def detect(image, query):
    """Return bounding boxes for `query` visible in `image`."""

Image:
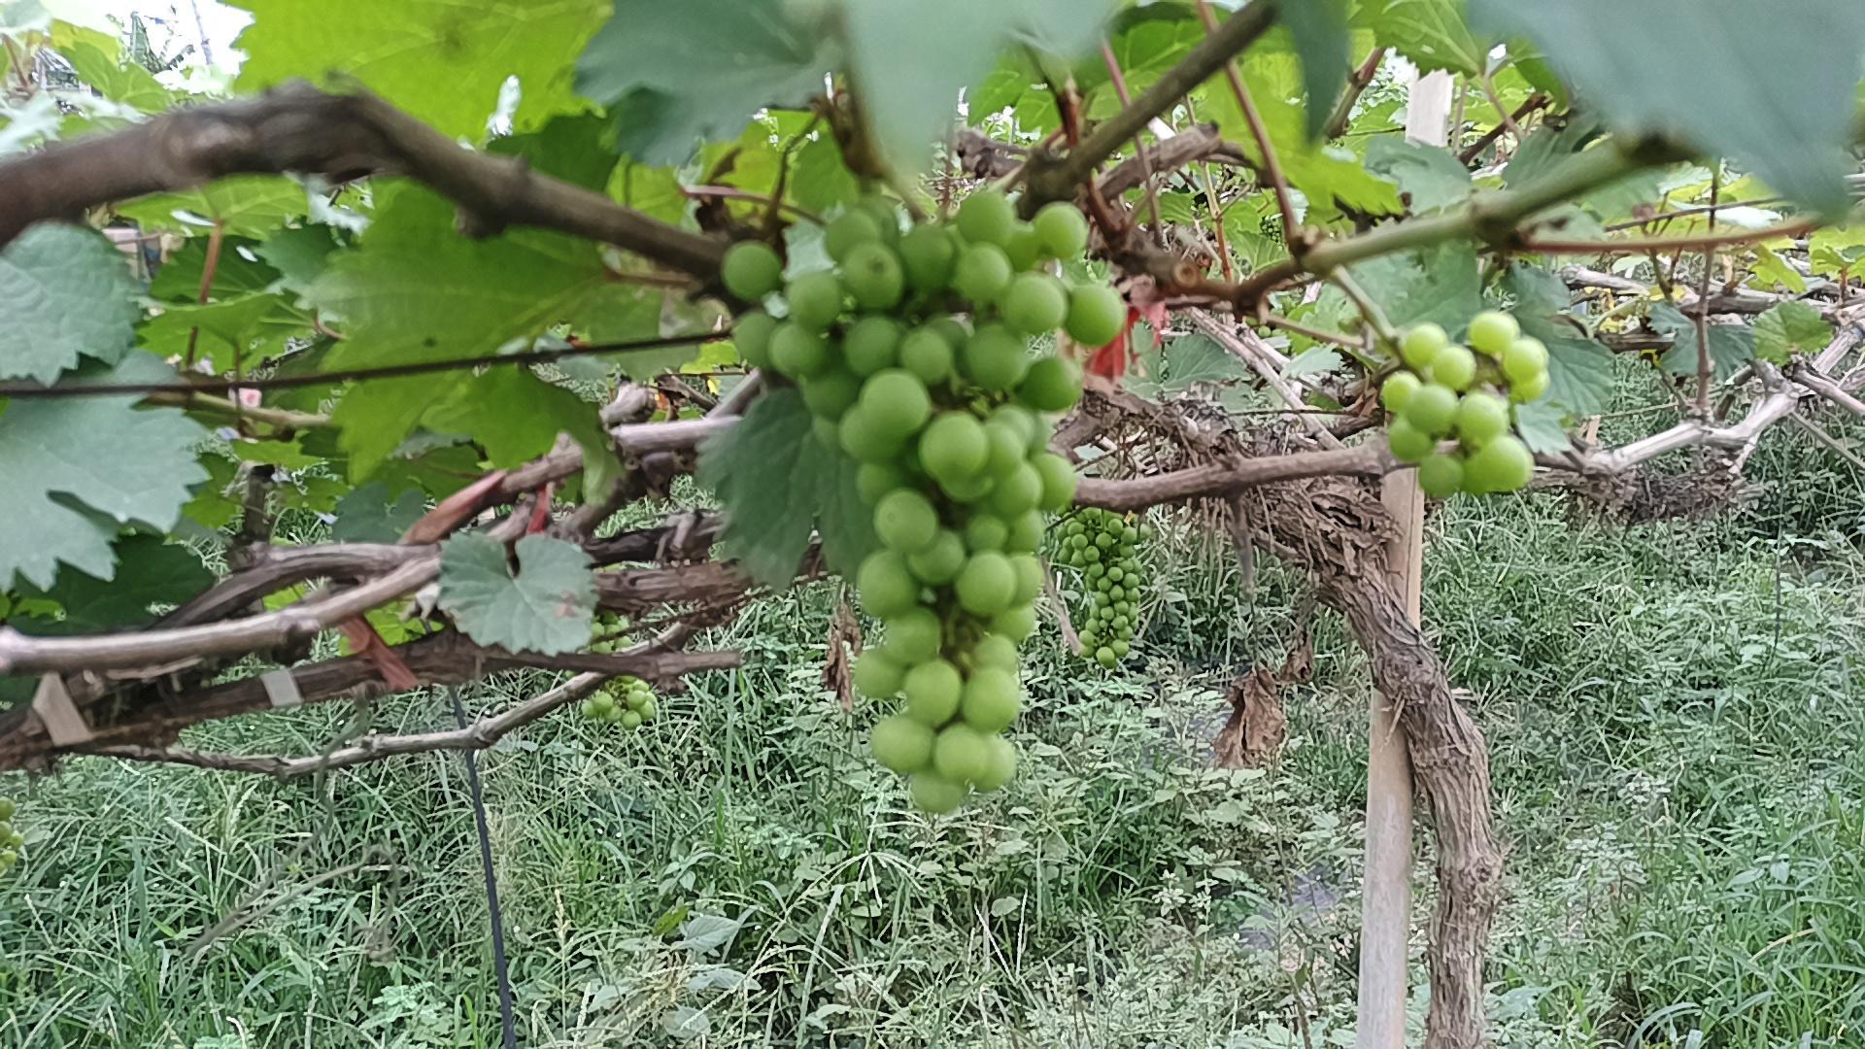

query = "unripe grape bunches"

[1054,508,1148,668]
[1380,311,1549,496]
[723,190,1124,812]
